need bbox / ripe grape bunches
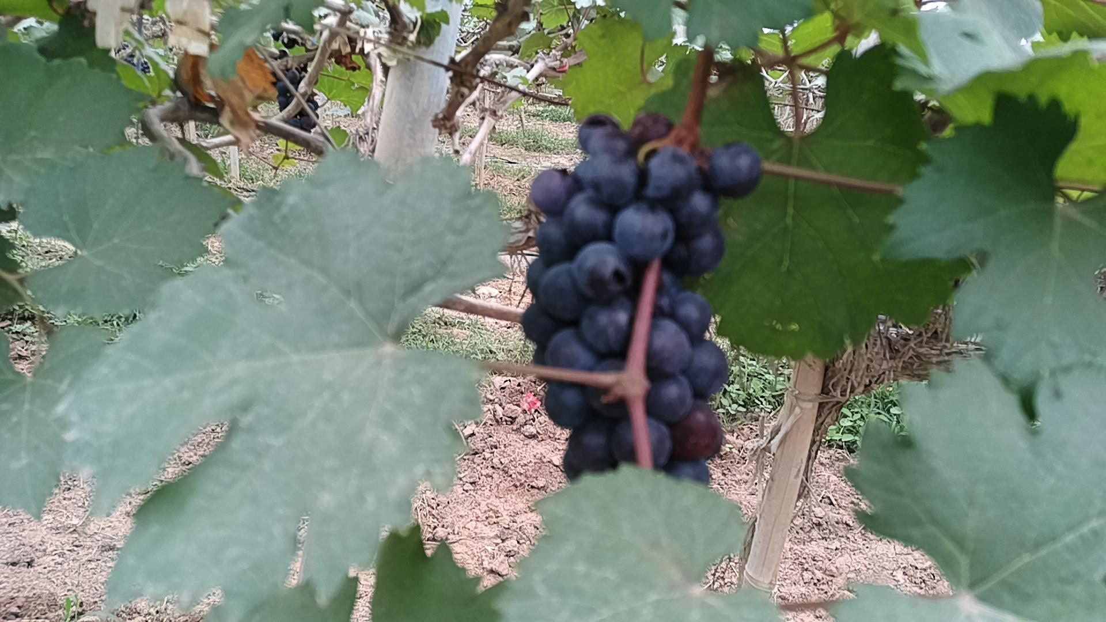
[270,31,319,133]
[522,113,762,487]
[115,44,151,74]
